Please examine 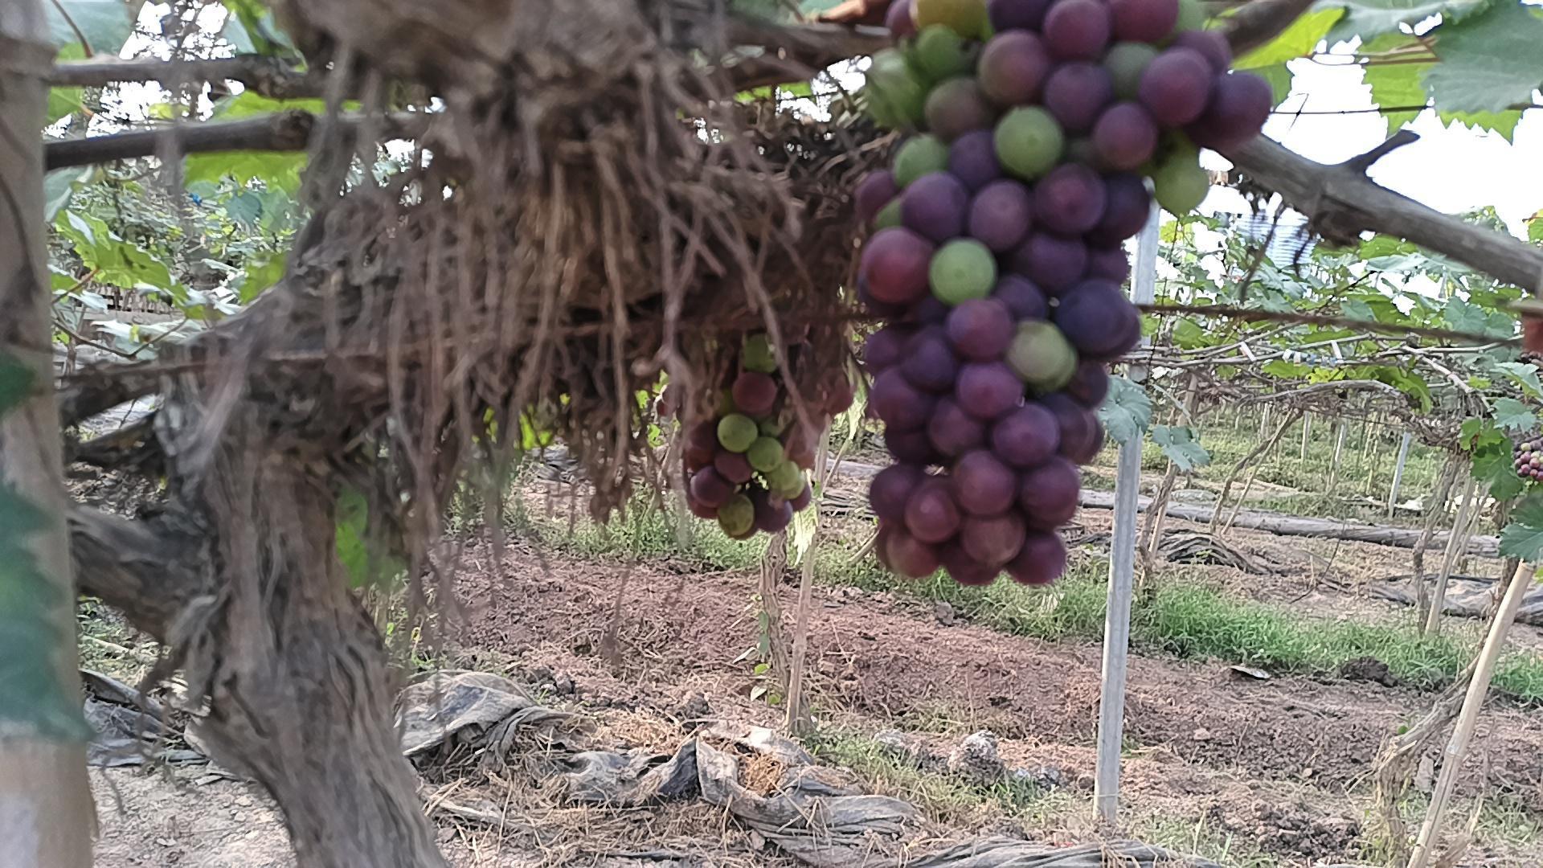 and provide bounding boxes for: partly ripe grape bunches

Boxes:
[859,0,1283,584]
[681,332,853,539]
